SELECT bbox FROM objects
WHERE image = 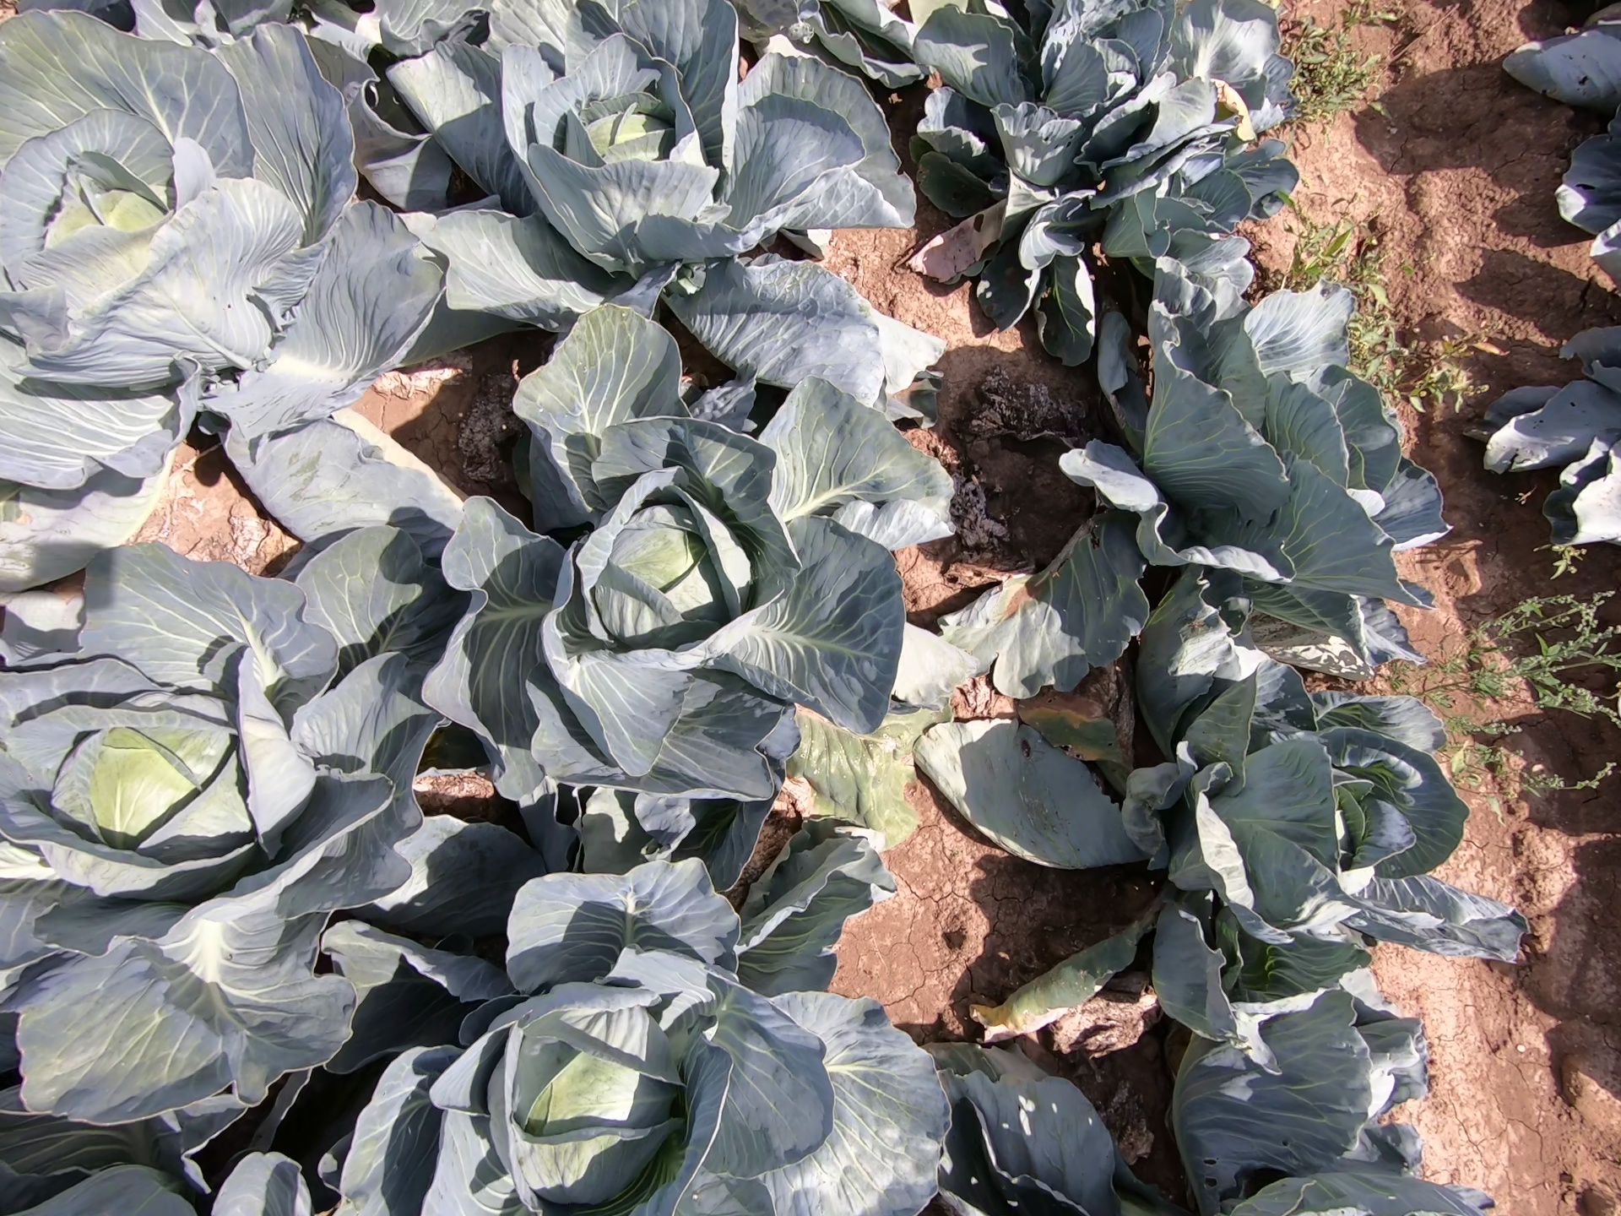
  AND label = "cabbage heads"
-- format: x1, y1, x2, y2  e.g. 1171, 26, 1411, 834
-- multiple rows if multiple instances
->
51, 693, 288, 888
486, 991, 677, 1208
567, 100, 703, 225
1191, 770, 1350, 916
590, 502, 753, 663
41, 179, 242, 356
